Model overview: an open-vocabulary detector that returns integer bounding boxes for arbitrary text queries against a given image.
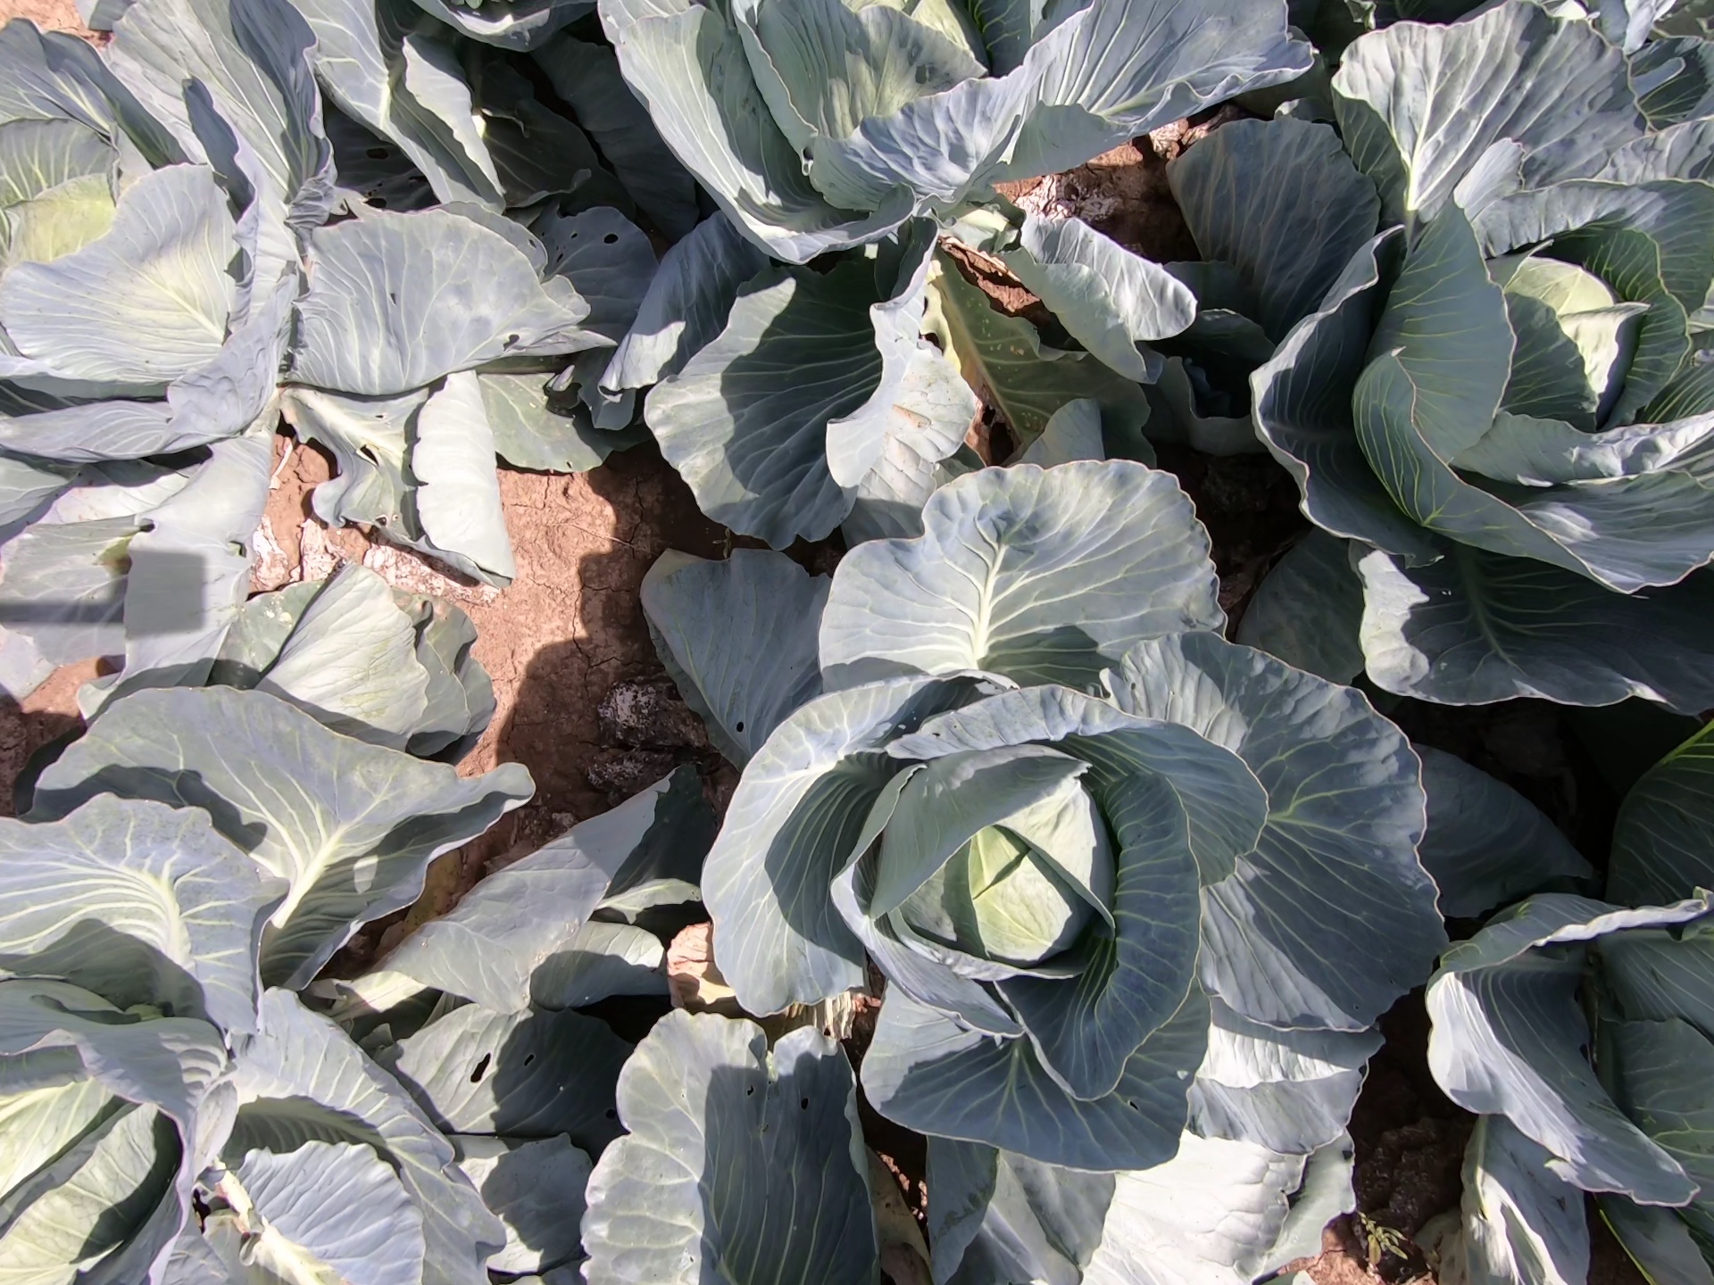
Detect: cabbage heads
[1435,253,1648,450]
[2,1024,213,1282]
[4,172,229,390]
[882,743,1111,969]
[755,4,996,188]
